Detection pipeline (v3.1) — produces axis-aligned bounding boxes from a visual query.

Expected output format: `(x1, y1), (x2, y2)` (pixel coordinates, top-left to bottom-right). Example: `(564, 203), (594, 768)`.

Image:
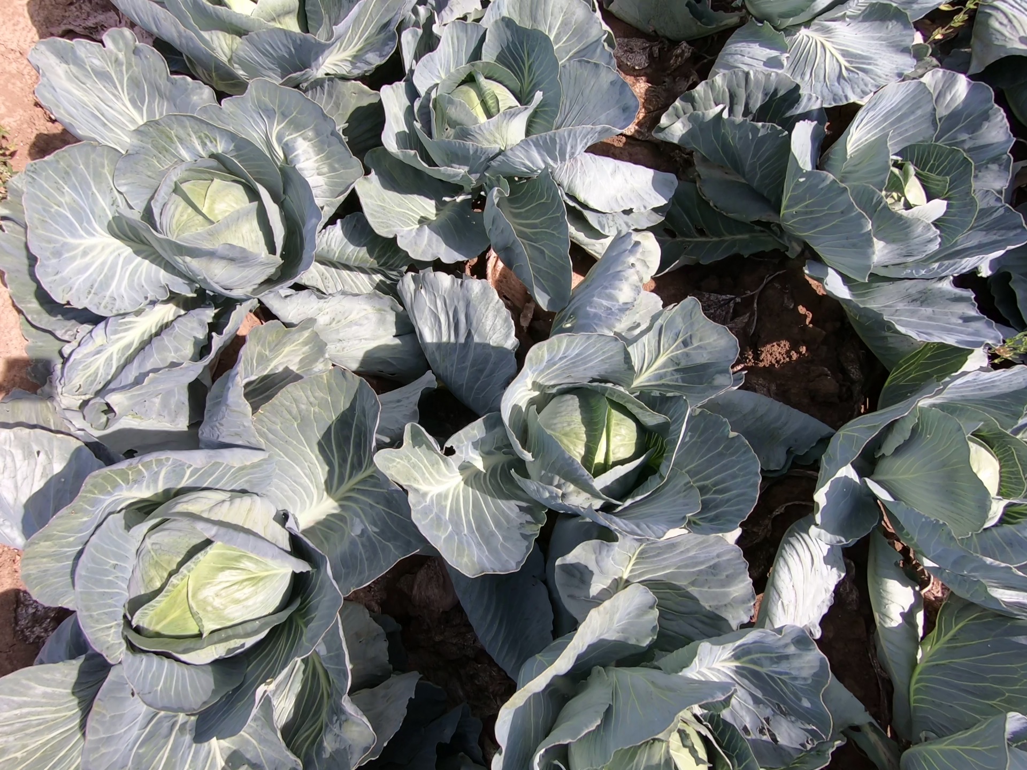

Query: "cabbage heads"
(567, 673), (714, 767)
(439, 78), (527, 162)
(171, 1), (318, 93)
(159, 172), (282, 286)
(902, 431), (1001, 522)
(527, 384), (645, 512)
(119, 495), (290, 663)
(851, 164), (926, 242)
